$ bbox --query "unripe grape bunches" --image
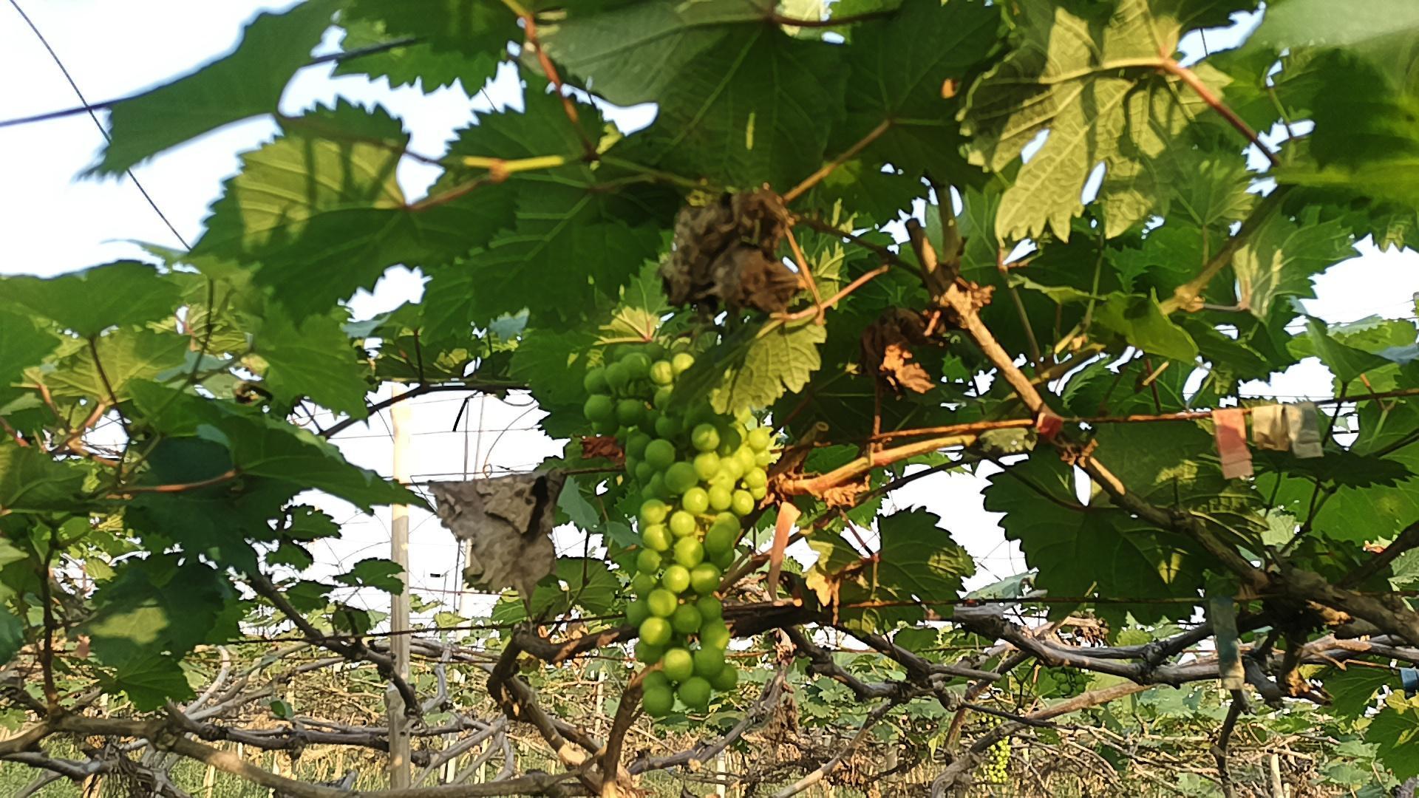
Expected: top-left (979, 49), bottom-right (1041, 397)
top-left (1049, 667), bottom-right (1092, 698)
top-left (976, 713), bottom-right (1014, 783)
top-left (584, 349), bottom-right (773, 715)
